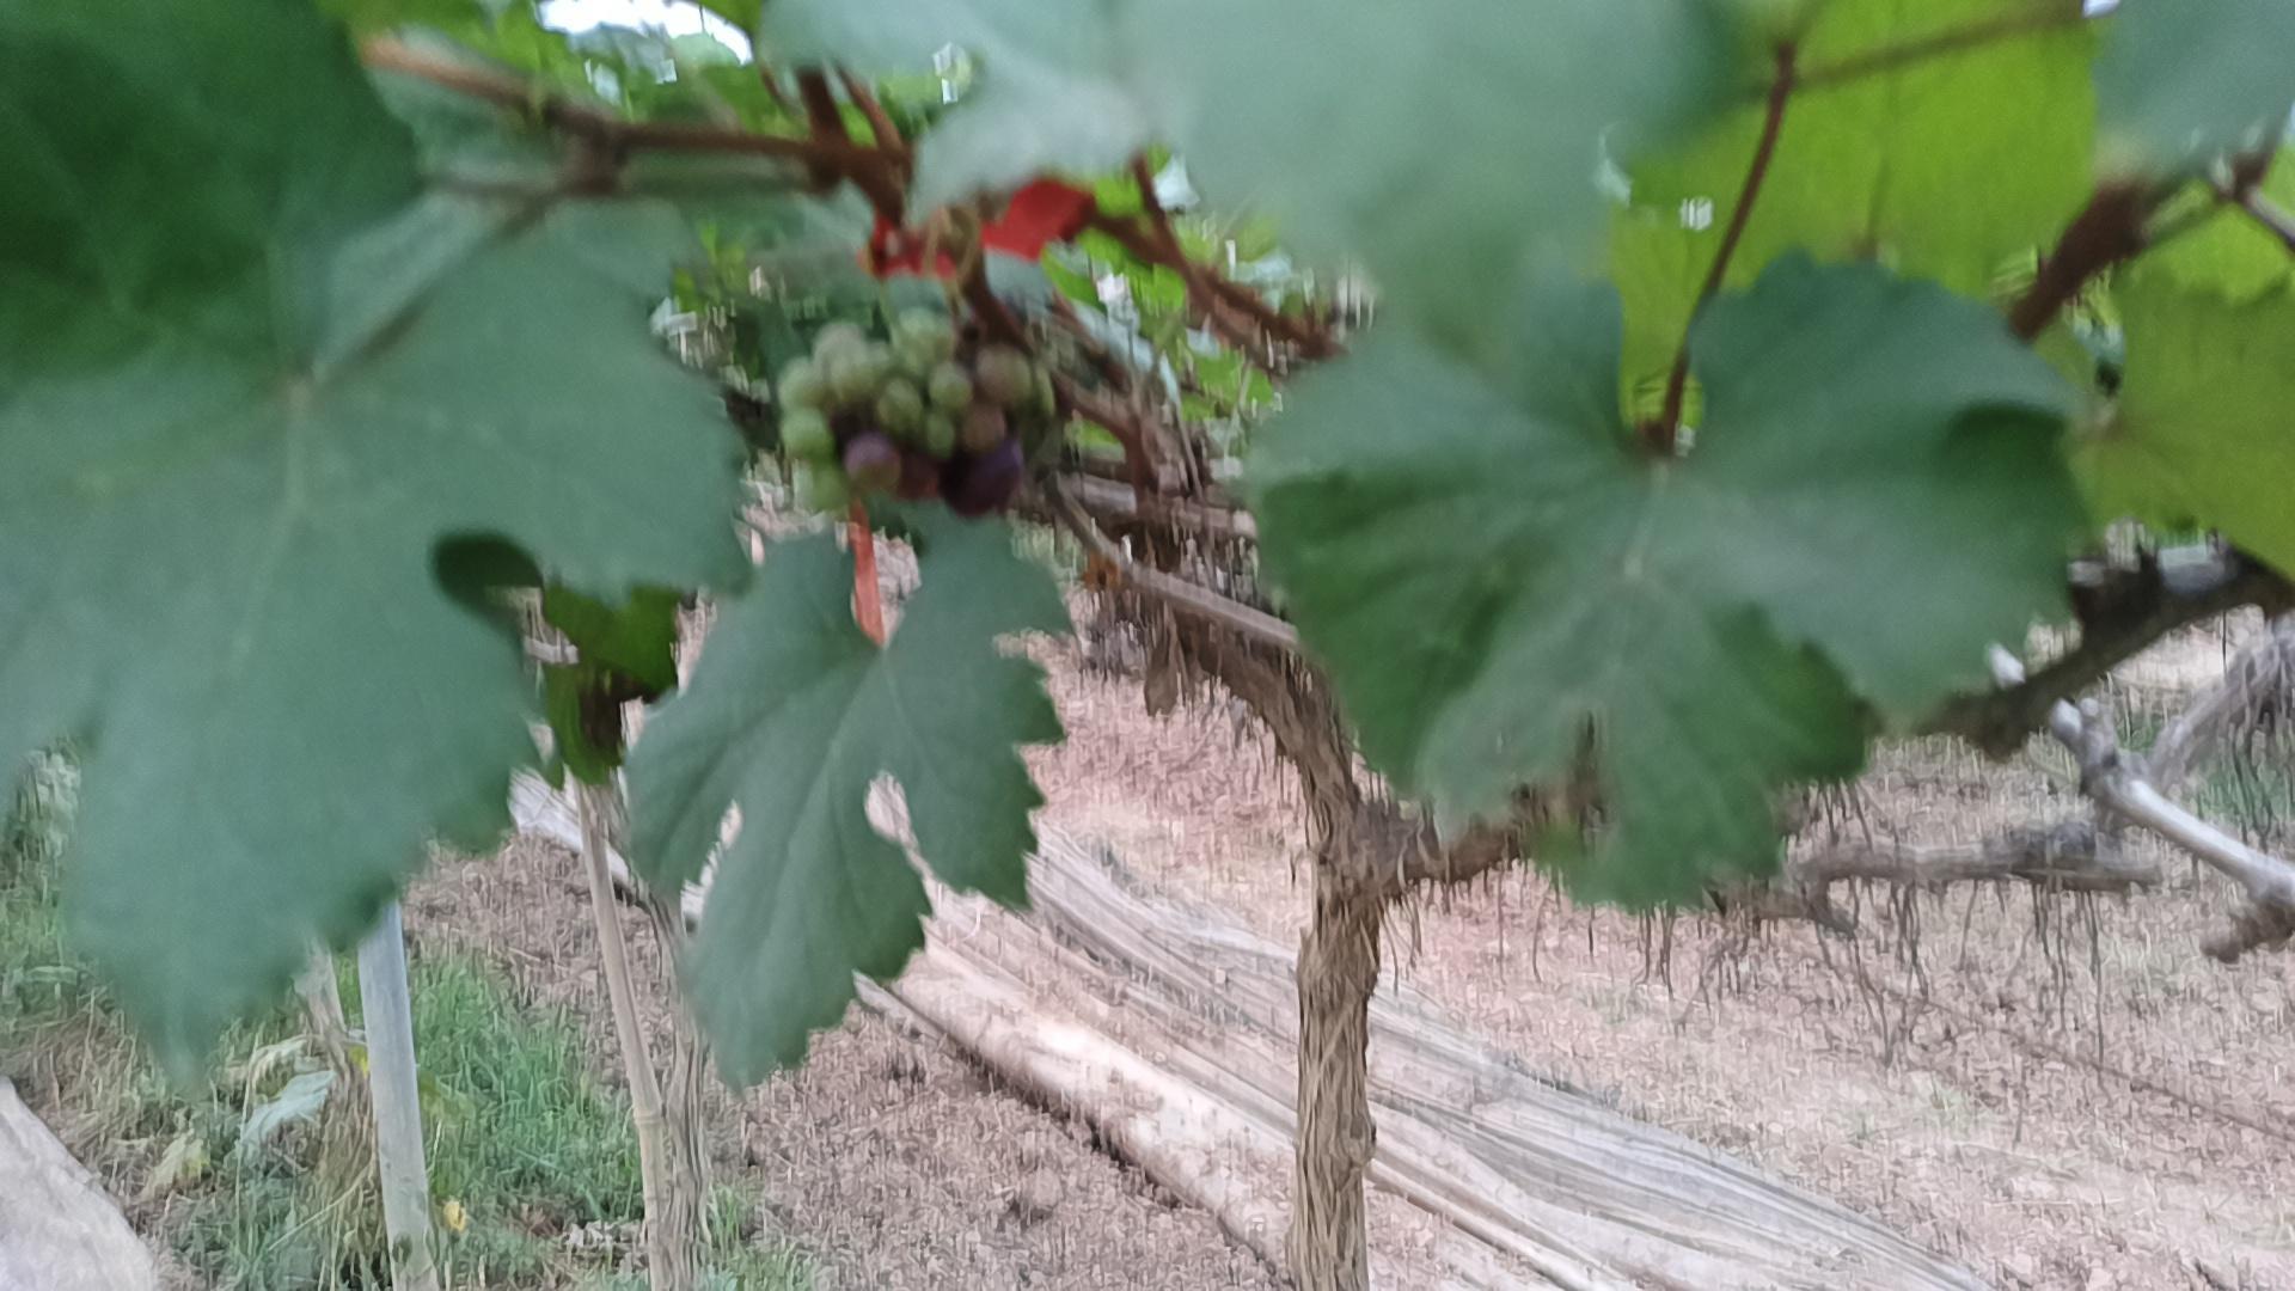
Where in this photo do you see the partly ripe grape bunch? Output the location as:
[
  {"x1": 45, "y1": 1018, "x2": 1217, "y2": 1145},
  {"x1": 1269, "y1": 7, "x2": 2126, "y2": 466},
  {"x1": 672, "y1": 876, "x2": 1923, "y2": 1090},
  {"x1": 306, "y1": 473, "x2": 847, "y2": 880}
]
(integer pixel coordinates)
[{"x1": 779, "y1": 307, "x2": 1057, "y2": 516}]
